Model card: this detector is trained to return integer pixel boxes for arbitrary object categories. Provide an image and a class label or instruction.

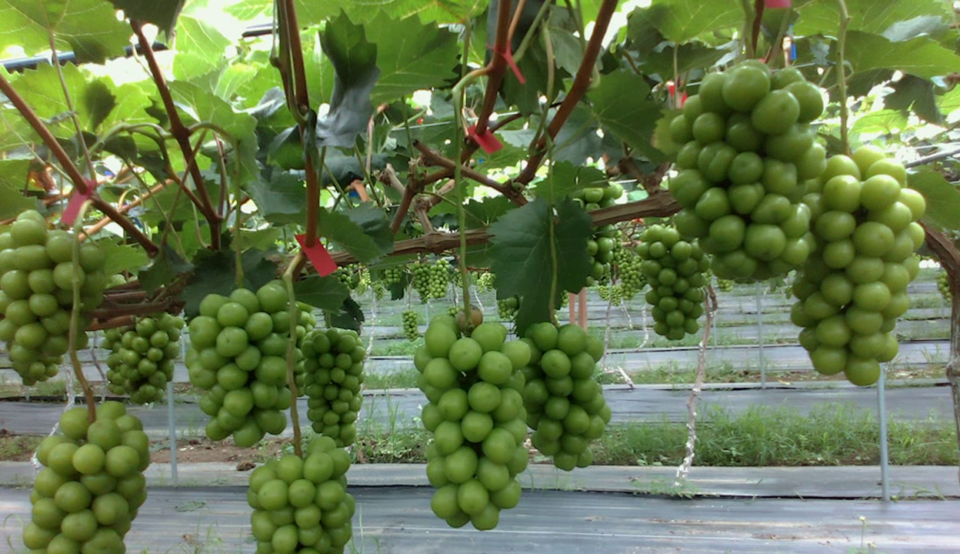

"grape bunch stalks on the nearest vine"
[283,252,303,460]
[59,185,78,230]
[835,0,852,156]
[68,199,97,424]
[189,122,244,289]
[452,68,488,337]
[742,1,758,59]
[542,124,558,326]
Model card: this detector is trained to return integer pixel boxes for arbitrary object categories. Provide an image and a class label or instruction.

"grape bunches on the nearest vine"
[185,279,291,448]
[0,210,106,387]
[669,58,826,284]
[414,304,531,530]
[520,321,612,472]
[23,400,151,552]
[790,144,927,386]
[246,436,355,553]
